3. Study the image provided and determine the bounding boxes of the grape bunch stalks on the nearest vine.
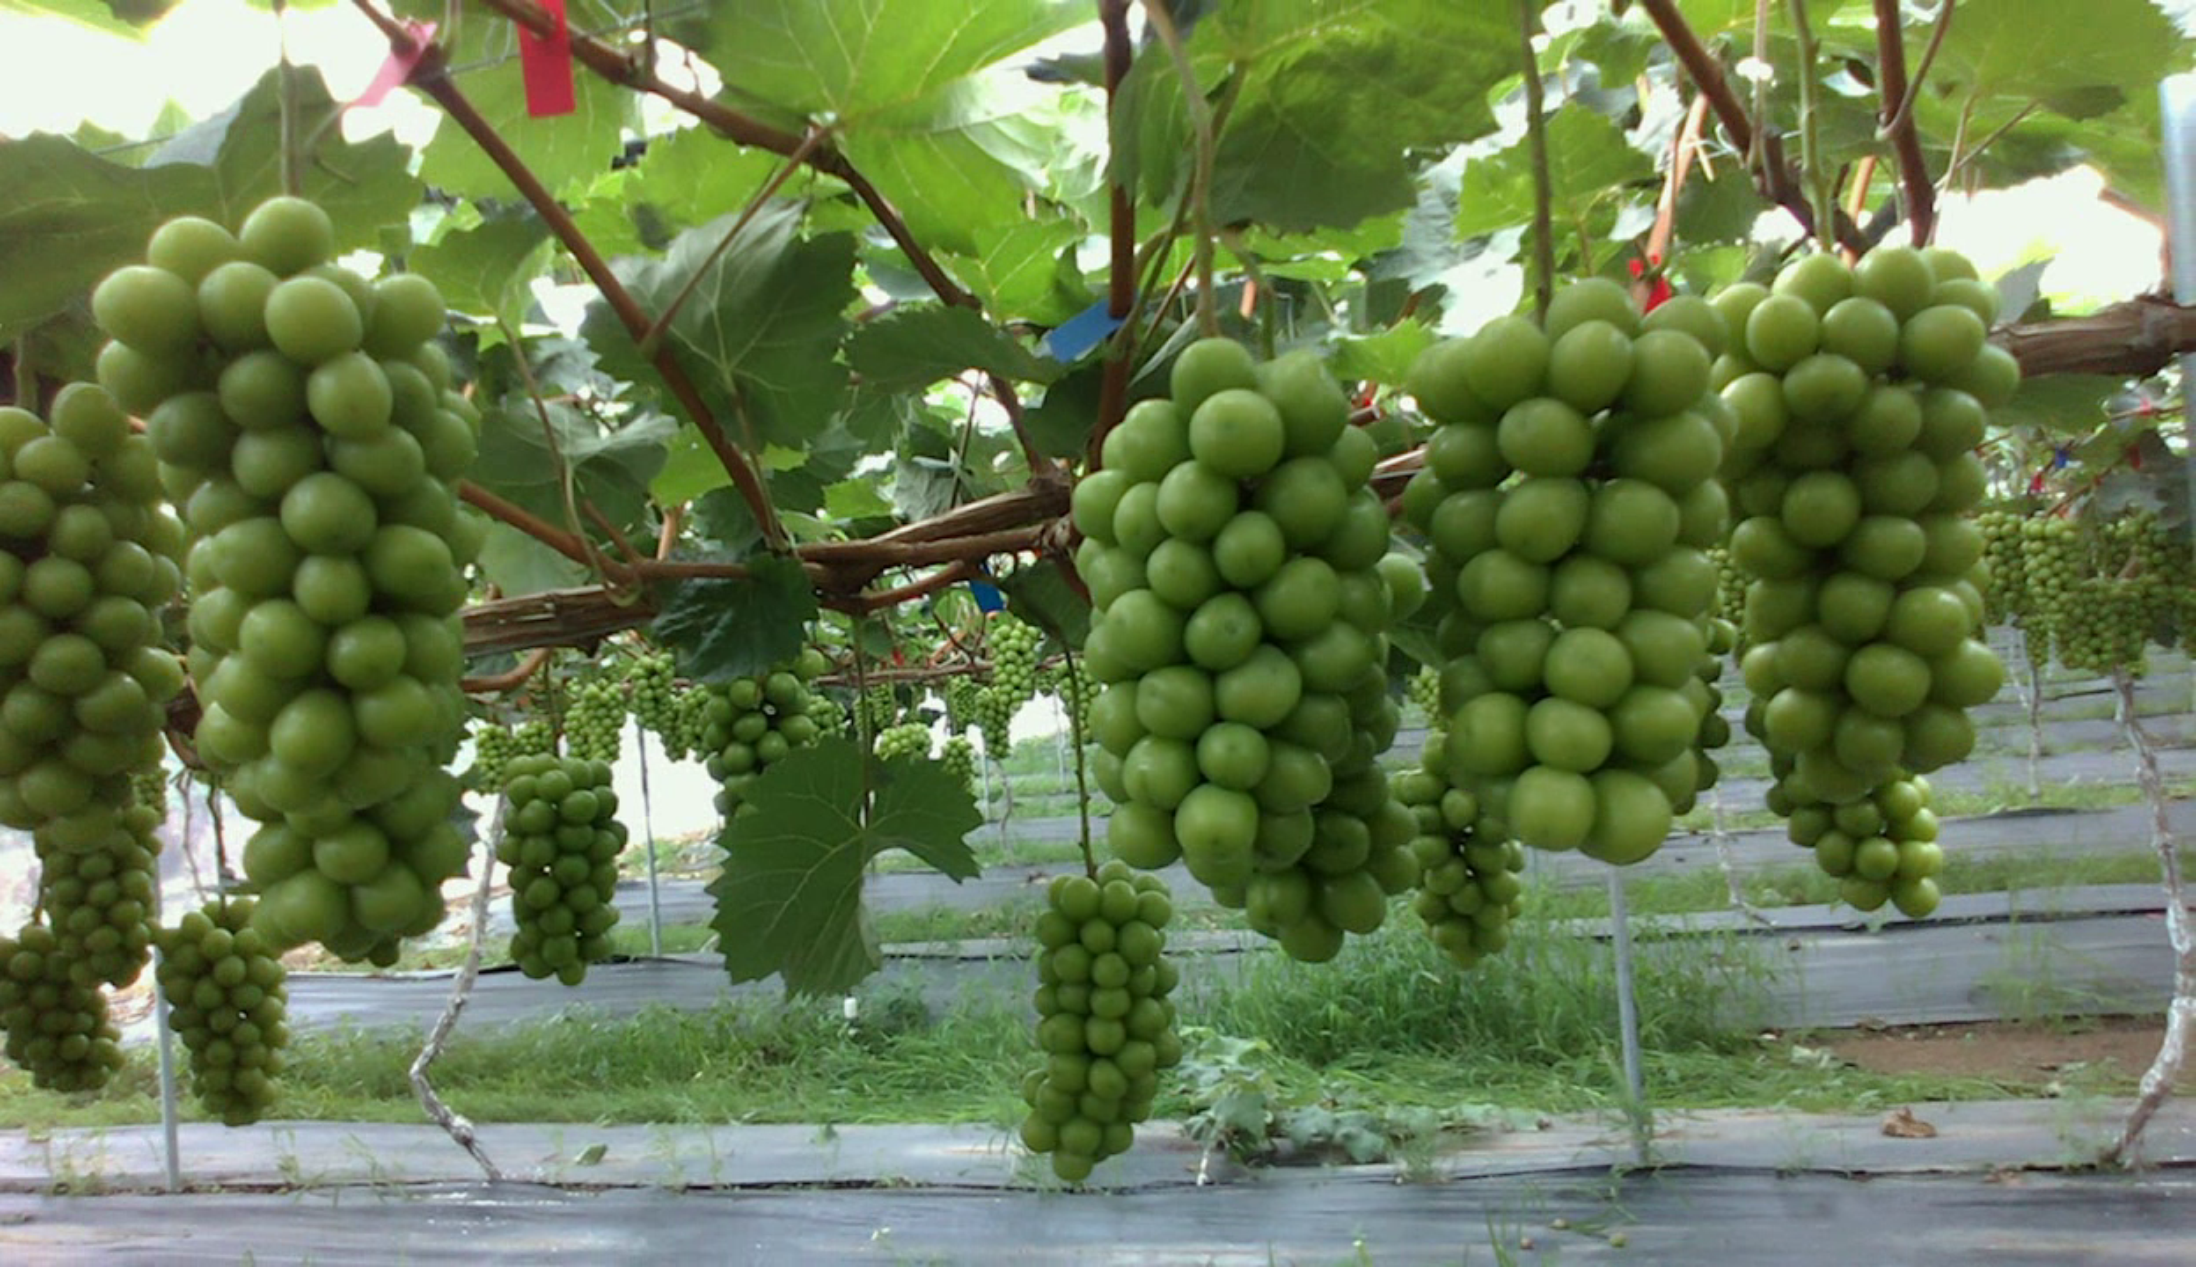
[1522,0,1554,313]
[1793,0,1832,250]
[1068,651,1096,880]
[18,336,39,408]
[278,49,296,192]
[1149,0,1218,334]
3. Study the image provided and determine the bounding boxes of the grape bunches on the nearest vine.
[1021,861,1182,1181]
[88,195,487,959]
[0,380,185,853]
[1709,243,2020,804]
[1406,276,1738,864]
[1070,336,1427,892]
